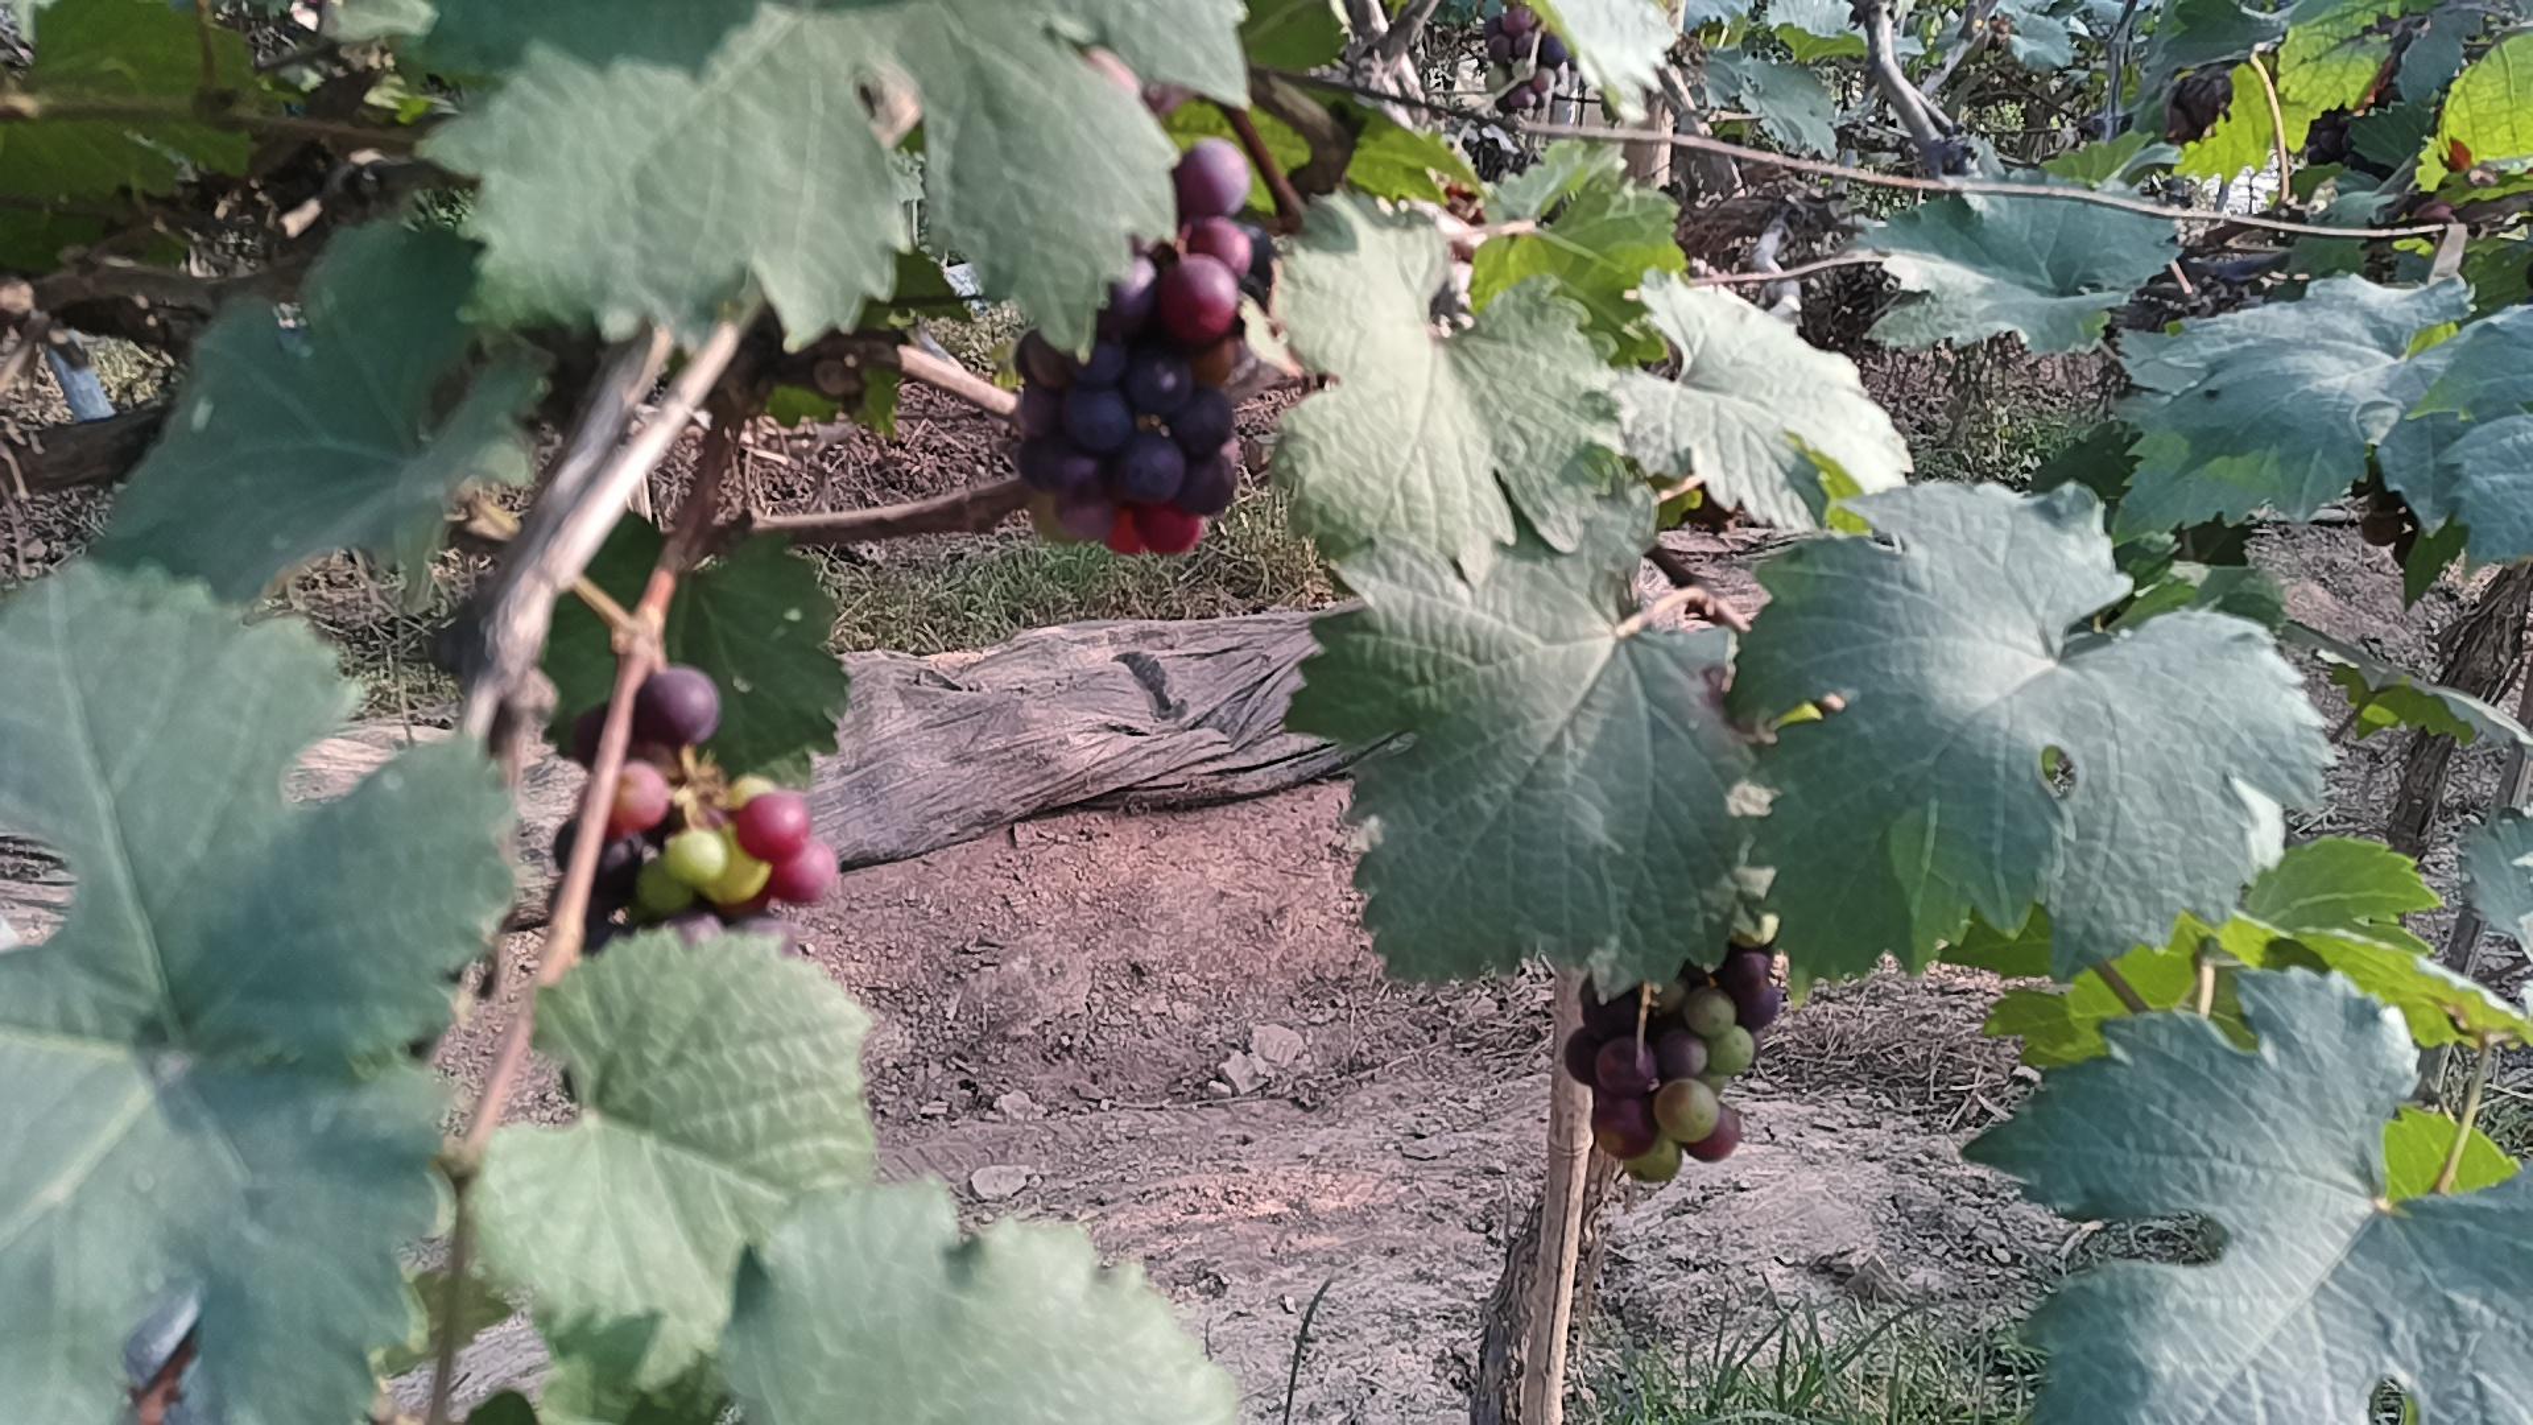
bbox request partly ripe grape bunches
[1015,139,1273,553]
[1562,913,1782,1181]
[547,666,838,959]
